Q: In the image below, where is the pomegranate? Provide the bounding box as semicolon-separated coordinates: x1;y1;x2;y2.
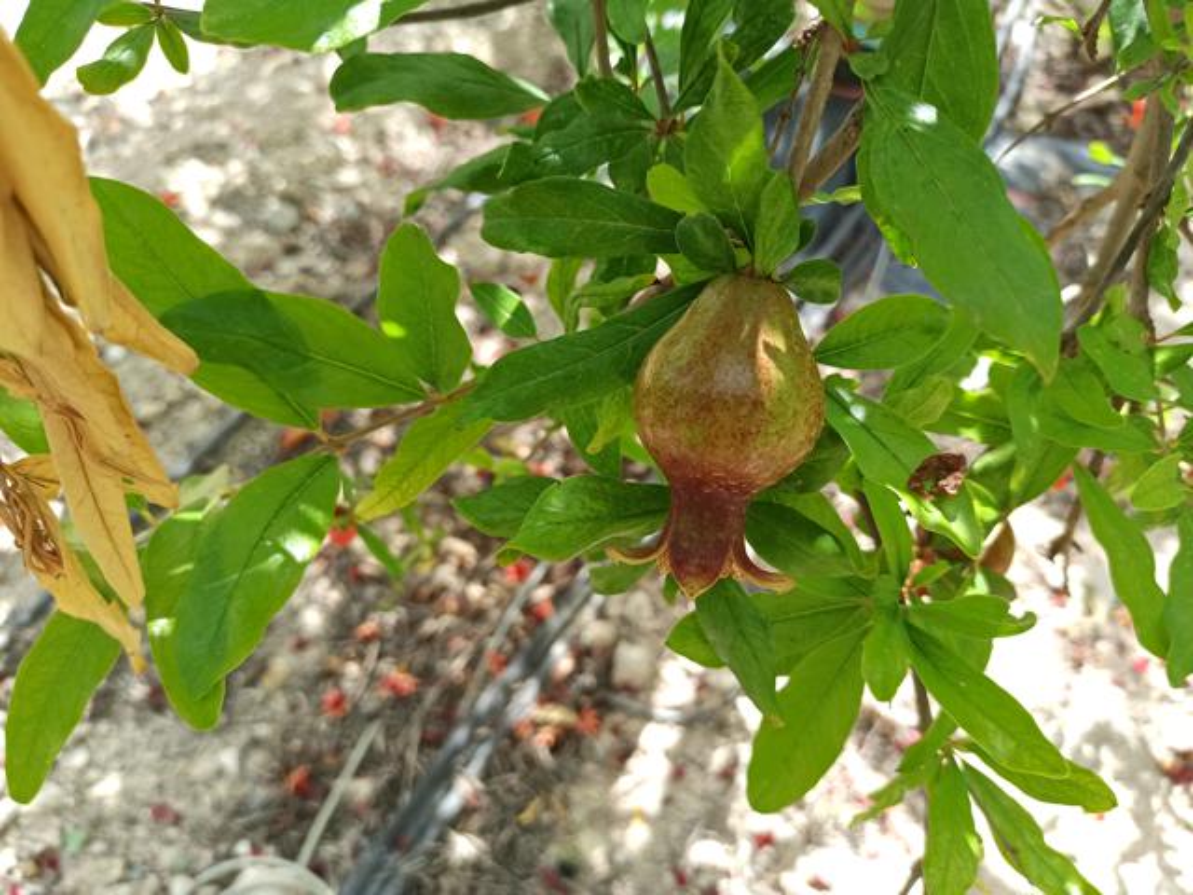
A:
604;274;826;600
